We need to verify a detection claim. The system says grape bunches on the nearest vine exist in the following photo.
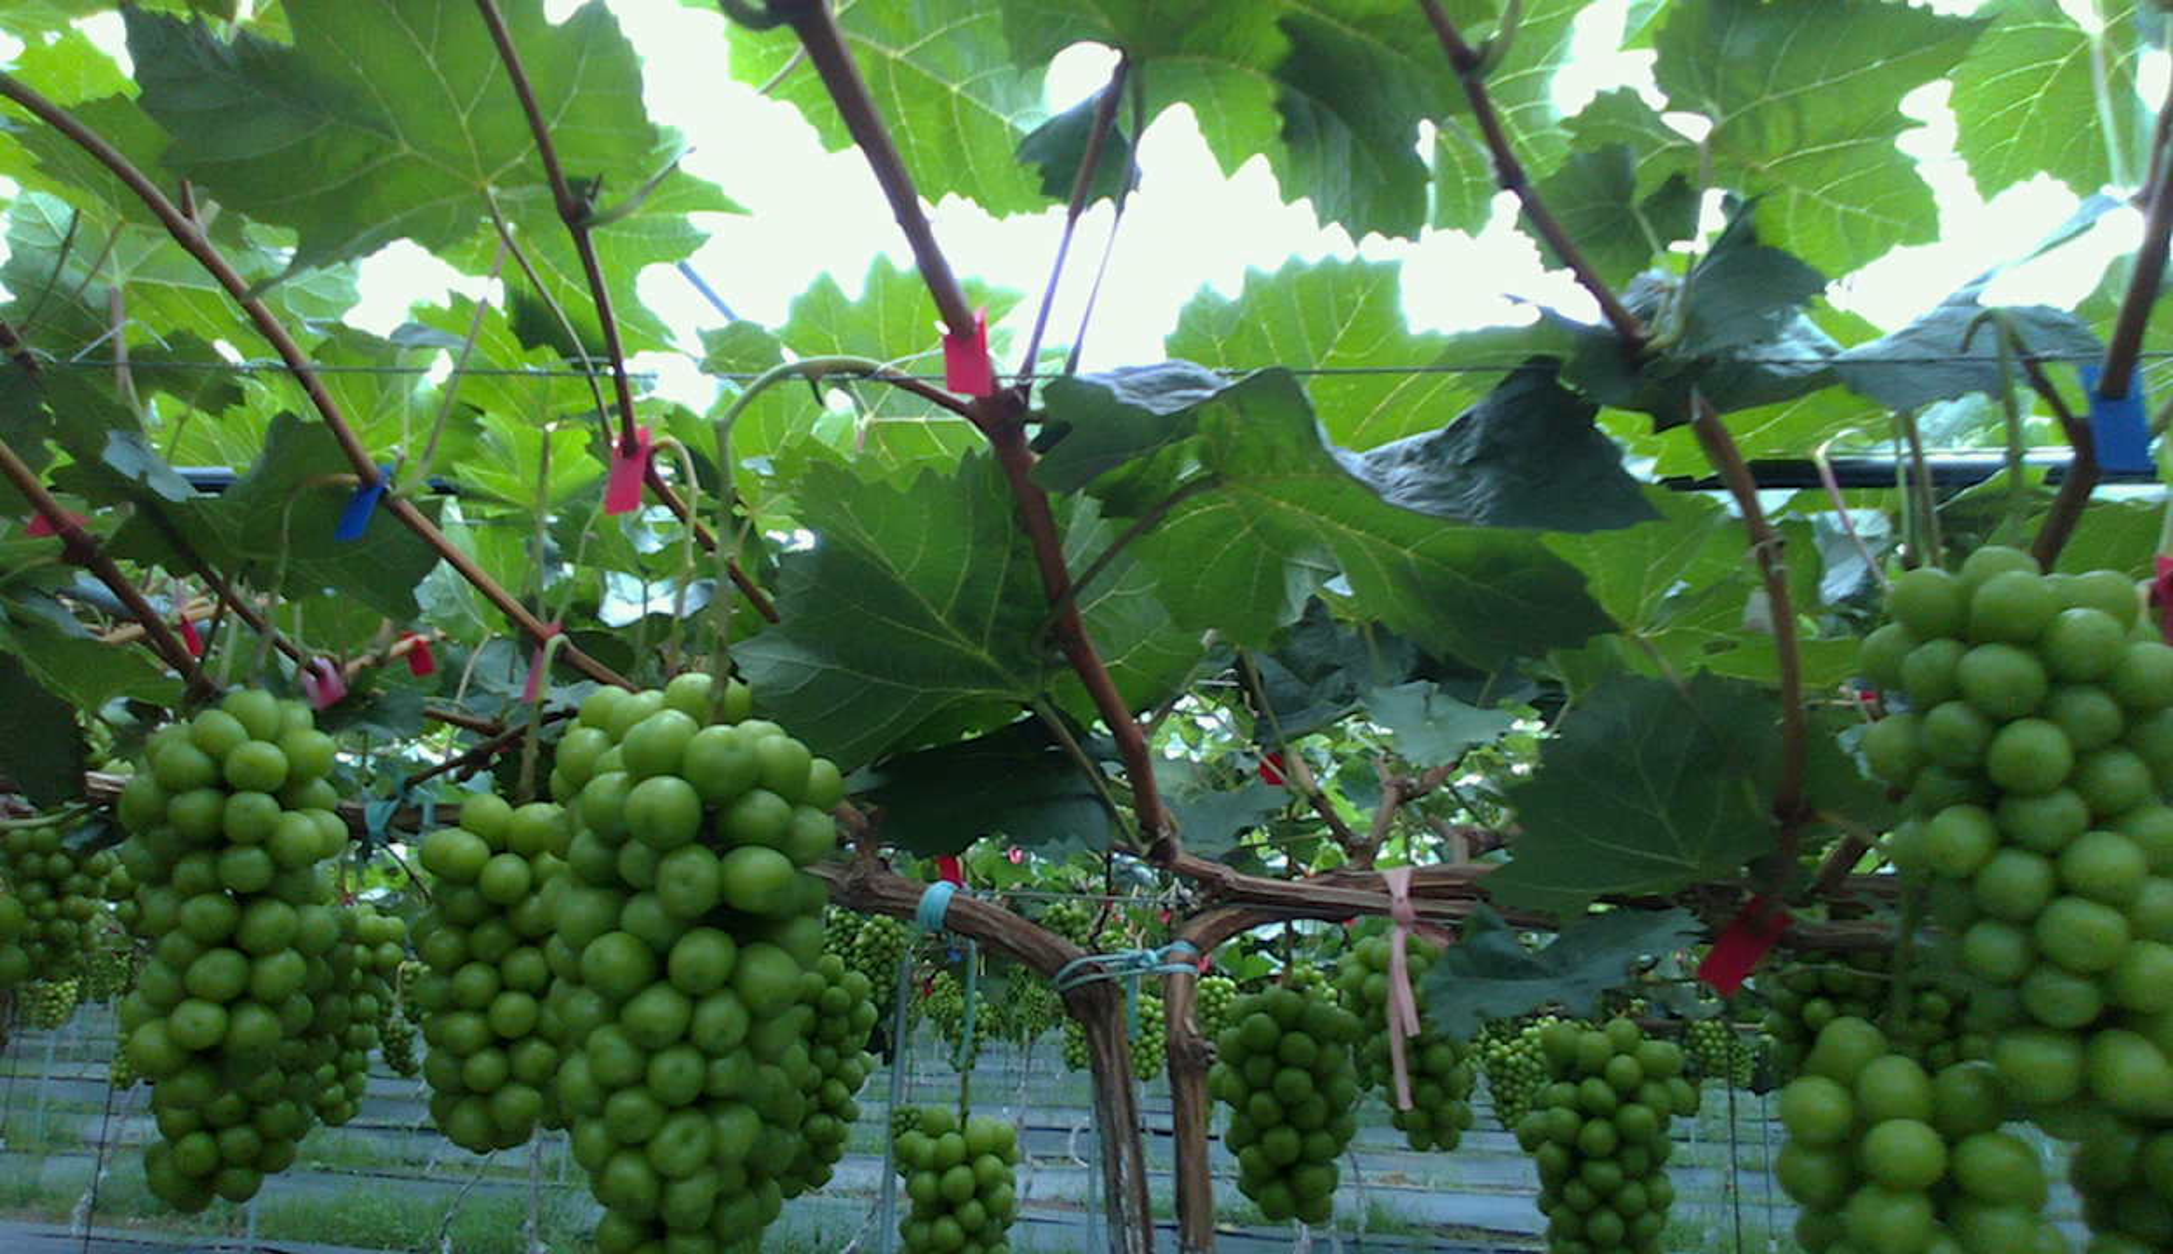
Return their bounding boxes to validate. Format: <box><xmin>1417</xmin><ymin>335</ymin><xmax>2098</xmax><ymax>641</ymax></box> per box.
<box><xmin>409</xmin><ymin>792</ymin><xmax>580</xmax><ymax>1156</ymax></box>
<box><xmin>0</xmin><ymin>892</ymin><xmax>30</xmax><ymax>986</ymax></box>
<box><xmin>1856</xmin><ymin>543</ymin><xmax>2171</xmax><ymax>1141</ymax></box>
<box><xmin>542</xmin><ymin>707</ymin><xmax>843</xmax><ymax>1252</ymax></box>
<box><xmin>145</xmin><ymin>907</ymin><xmax>359</xmax><ymax>1212</ymax></box>
<box><xmin>118</xmin><ymin>688</ymin><xmax>348</xmax><ymax>1111</ymax></box>
<box><xmin>543</xmin><ymin>671</ymin><xmax>752</xmax><ymax>867</ymax></box>
<box><xmin>2069</xmin><ymin>1101</ymin><xmax>2170</xmax><ymax>1251</ymax></box>
<box><xmin>1769</xmin><ymin>1015</ymin><xmax>2072</xmax><ymax>1252</ymax></box>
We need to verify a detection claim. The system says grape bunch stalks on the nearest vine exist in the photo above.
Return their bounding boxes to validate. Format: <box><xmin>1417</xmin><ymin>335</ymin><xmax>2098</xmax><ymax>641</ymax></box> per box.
<box><xmin>1884</xmin><ymin>887</ymin><xmax>1922</xmax><ymax>1054</ymax></box>
<box><xmin>1957</xmin><ymin>307</ymin><xmax>2091</xmax><ymax>549</ymax></box>
<box><xmin>244</xmin><ymin>472</ymin><xmax>359</xmax><ymax>690</ymax></box>
<box><xmin>705</xmin><ymin>355</ymin><xmax>992</xmax><ymax>725</ymax></box>
<box><xmin>648</xmin><ymin>435</ymin><xmax>696</xmax><ymax>684</ymax></box>
<box><xmin>517</xmin><ymin>636</ymin><xmax>573</xmax><ymax>806</ymax></box>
